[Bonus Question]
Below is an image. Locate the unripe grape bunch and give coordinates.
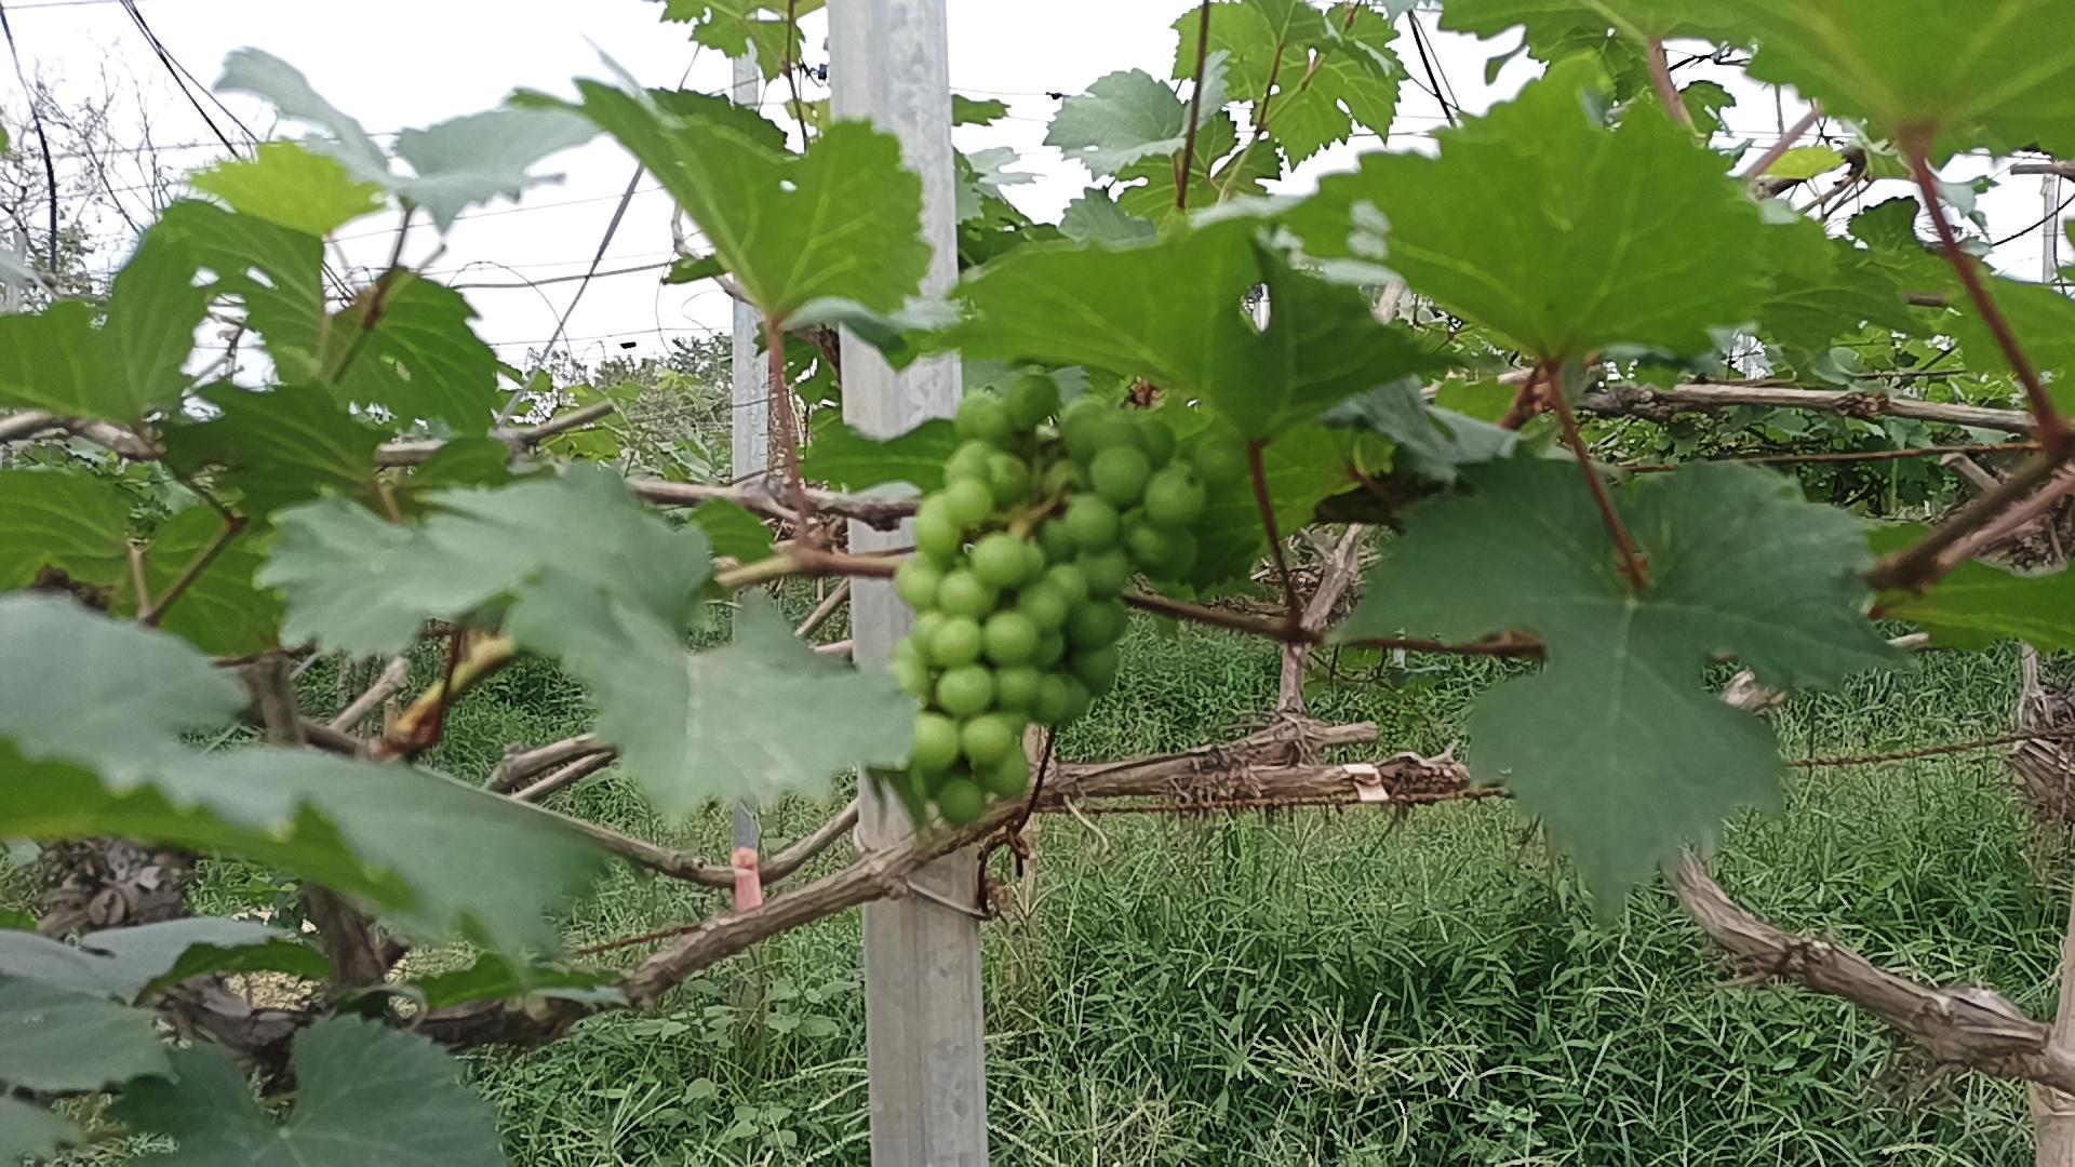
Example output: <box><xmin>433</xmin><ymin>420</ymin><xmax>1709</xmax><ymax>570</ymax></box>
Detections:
<box><xmin>892</xmin><ymin>374</ymin><xmax>1213</xmax><ymax>826</ymax></box>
